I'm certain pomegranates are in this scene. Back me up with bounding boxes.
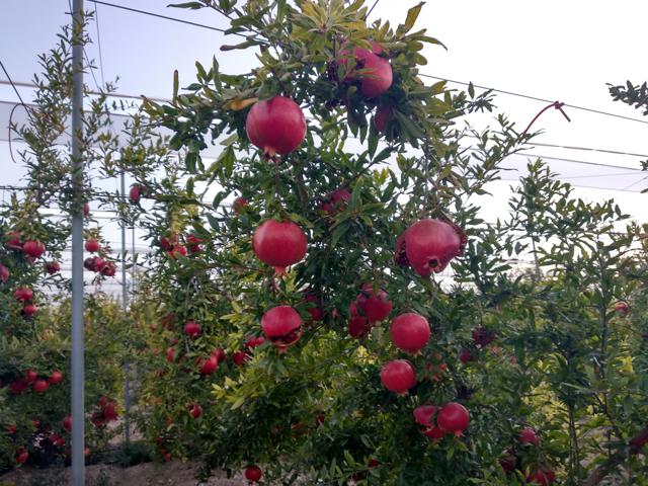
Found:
[22,304,35,314]
[372,108,392,134]
[353,40,392,99]
[167,244,187,257]
[260,305,305,349]
[528,469,554,486]
[32,378,51,395]
[246,95,306,163]
[3,237,20,250]
[381,358,416,399]
[24,370,37,384]
[104,403,119,421]
[436,403,471,438]
[183,321,201,338]
[245,468,261,486]
[254,218,308,278]
[188,403,204,418]
[48,260,61,276]
[347,288,394,340]
[519,428,538,443]
[49,434,64,445]
[210,348,226,363]
[0,264,10,286]
[94,256,106,272]
[390,312,432,359]
[318,189,351,214]
[395,218,467,277]
[47,371,63,385]
[167,347,173,362]
[412,404,447,439]
[83,257,96,271]
[16,449,30,465]
[245,336,266,348]
[100,260,114,276]
[161,235,170,249]
[15,288,32,302]
[305,307,321,321]
[85,240,100,255]
[61,416,72,433]
[20,240,46,260]
[10,378,28,394]
[201,354,220,374]
[233,351,245,369]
